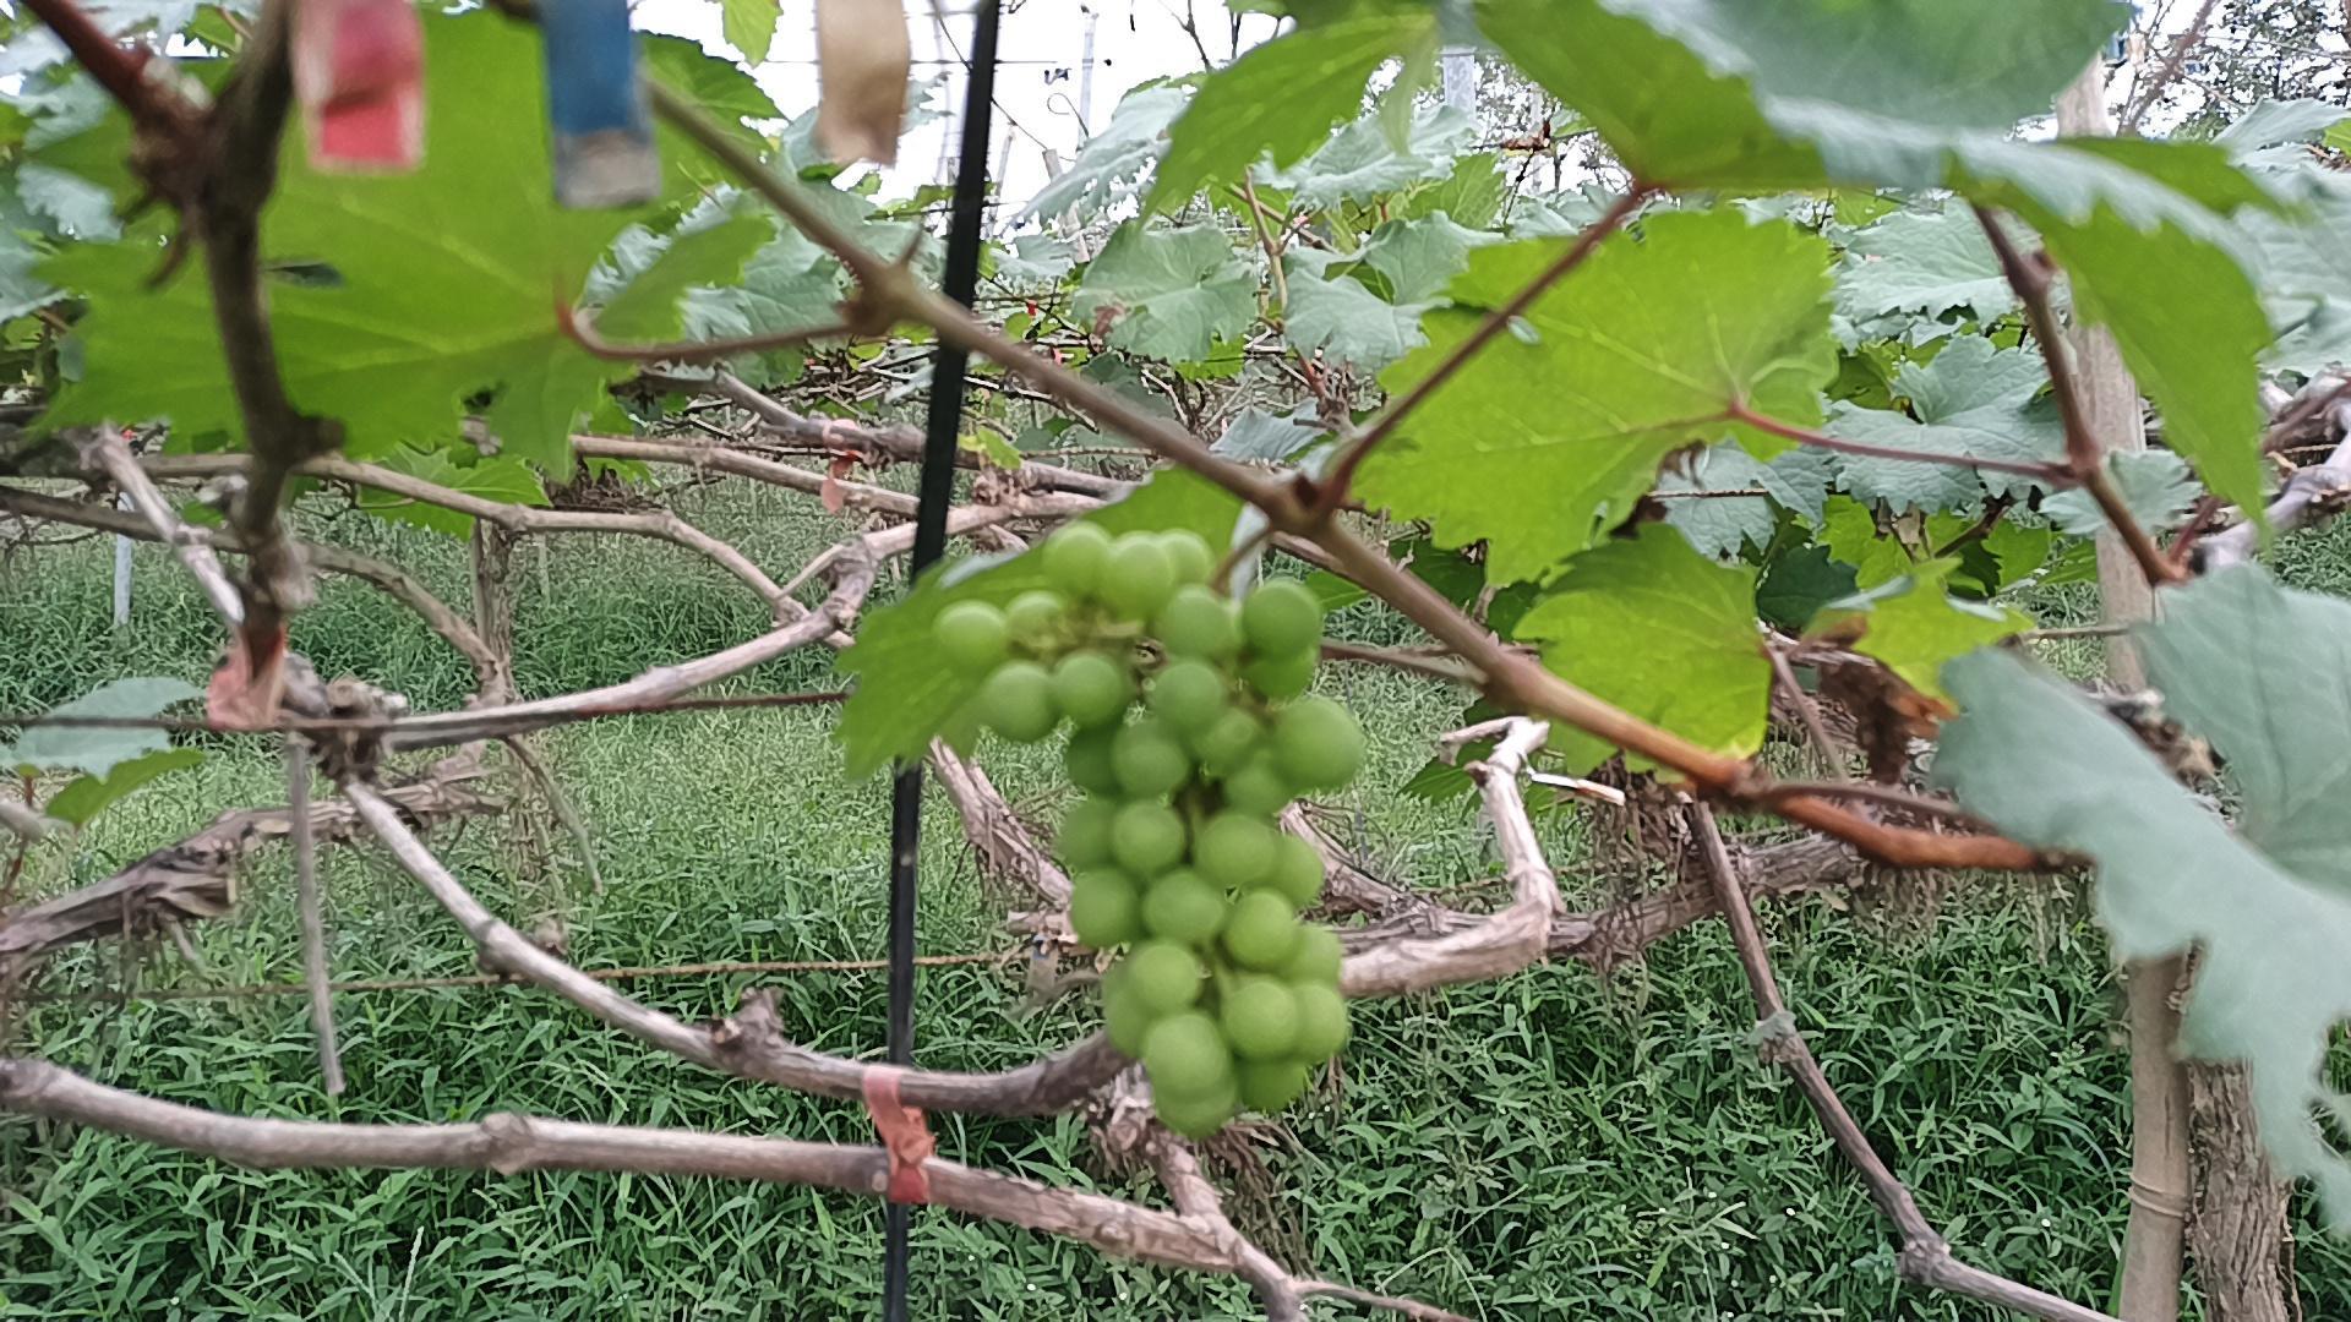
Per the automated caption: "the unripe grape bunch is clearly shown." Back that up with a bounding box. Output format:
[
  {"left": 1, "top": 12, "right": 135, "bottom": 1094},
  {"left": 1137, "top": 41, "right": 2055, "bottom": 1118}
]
[{"left": 937, "top": 525, "right": 1363, "bottom": 1138}]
